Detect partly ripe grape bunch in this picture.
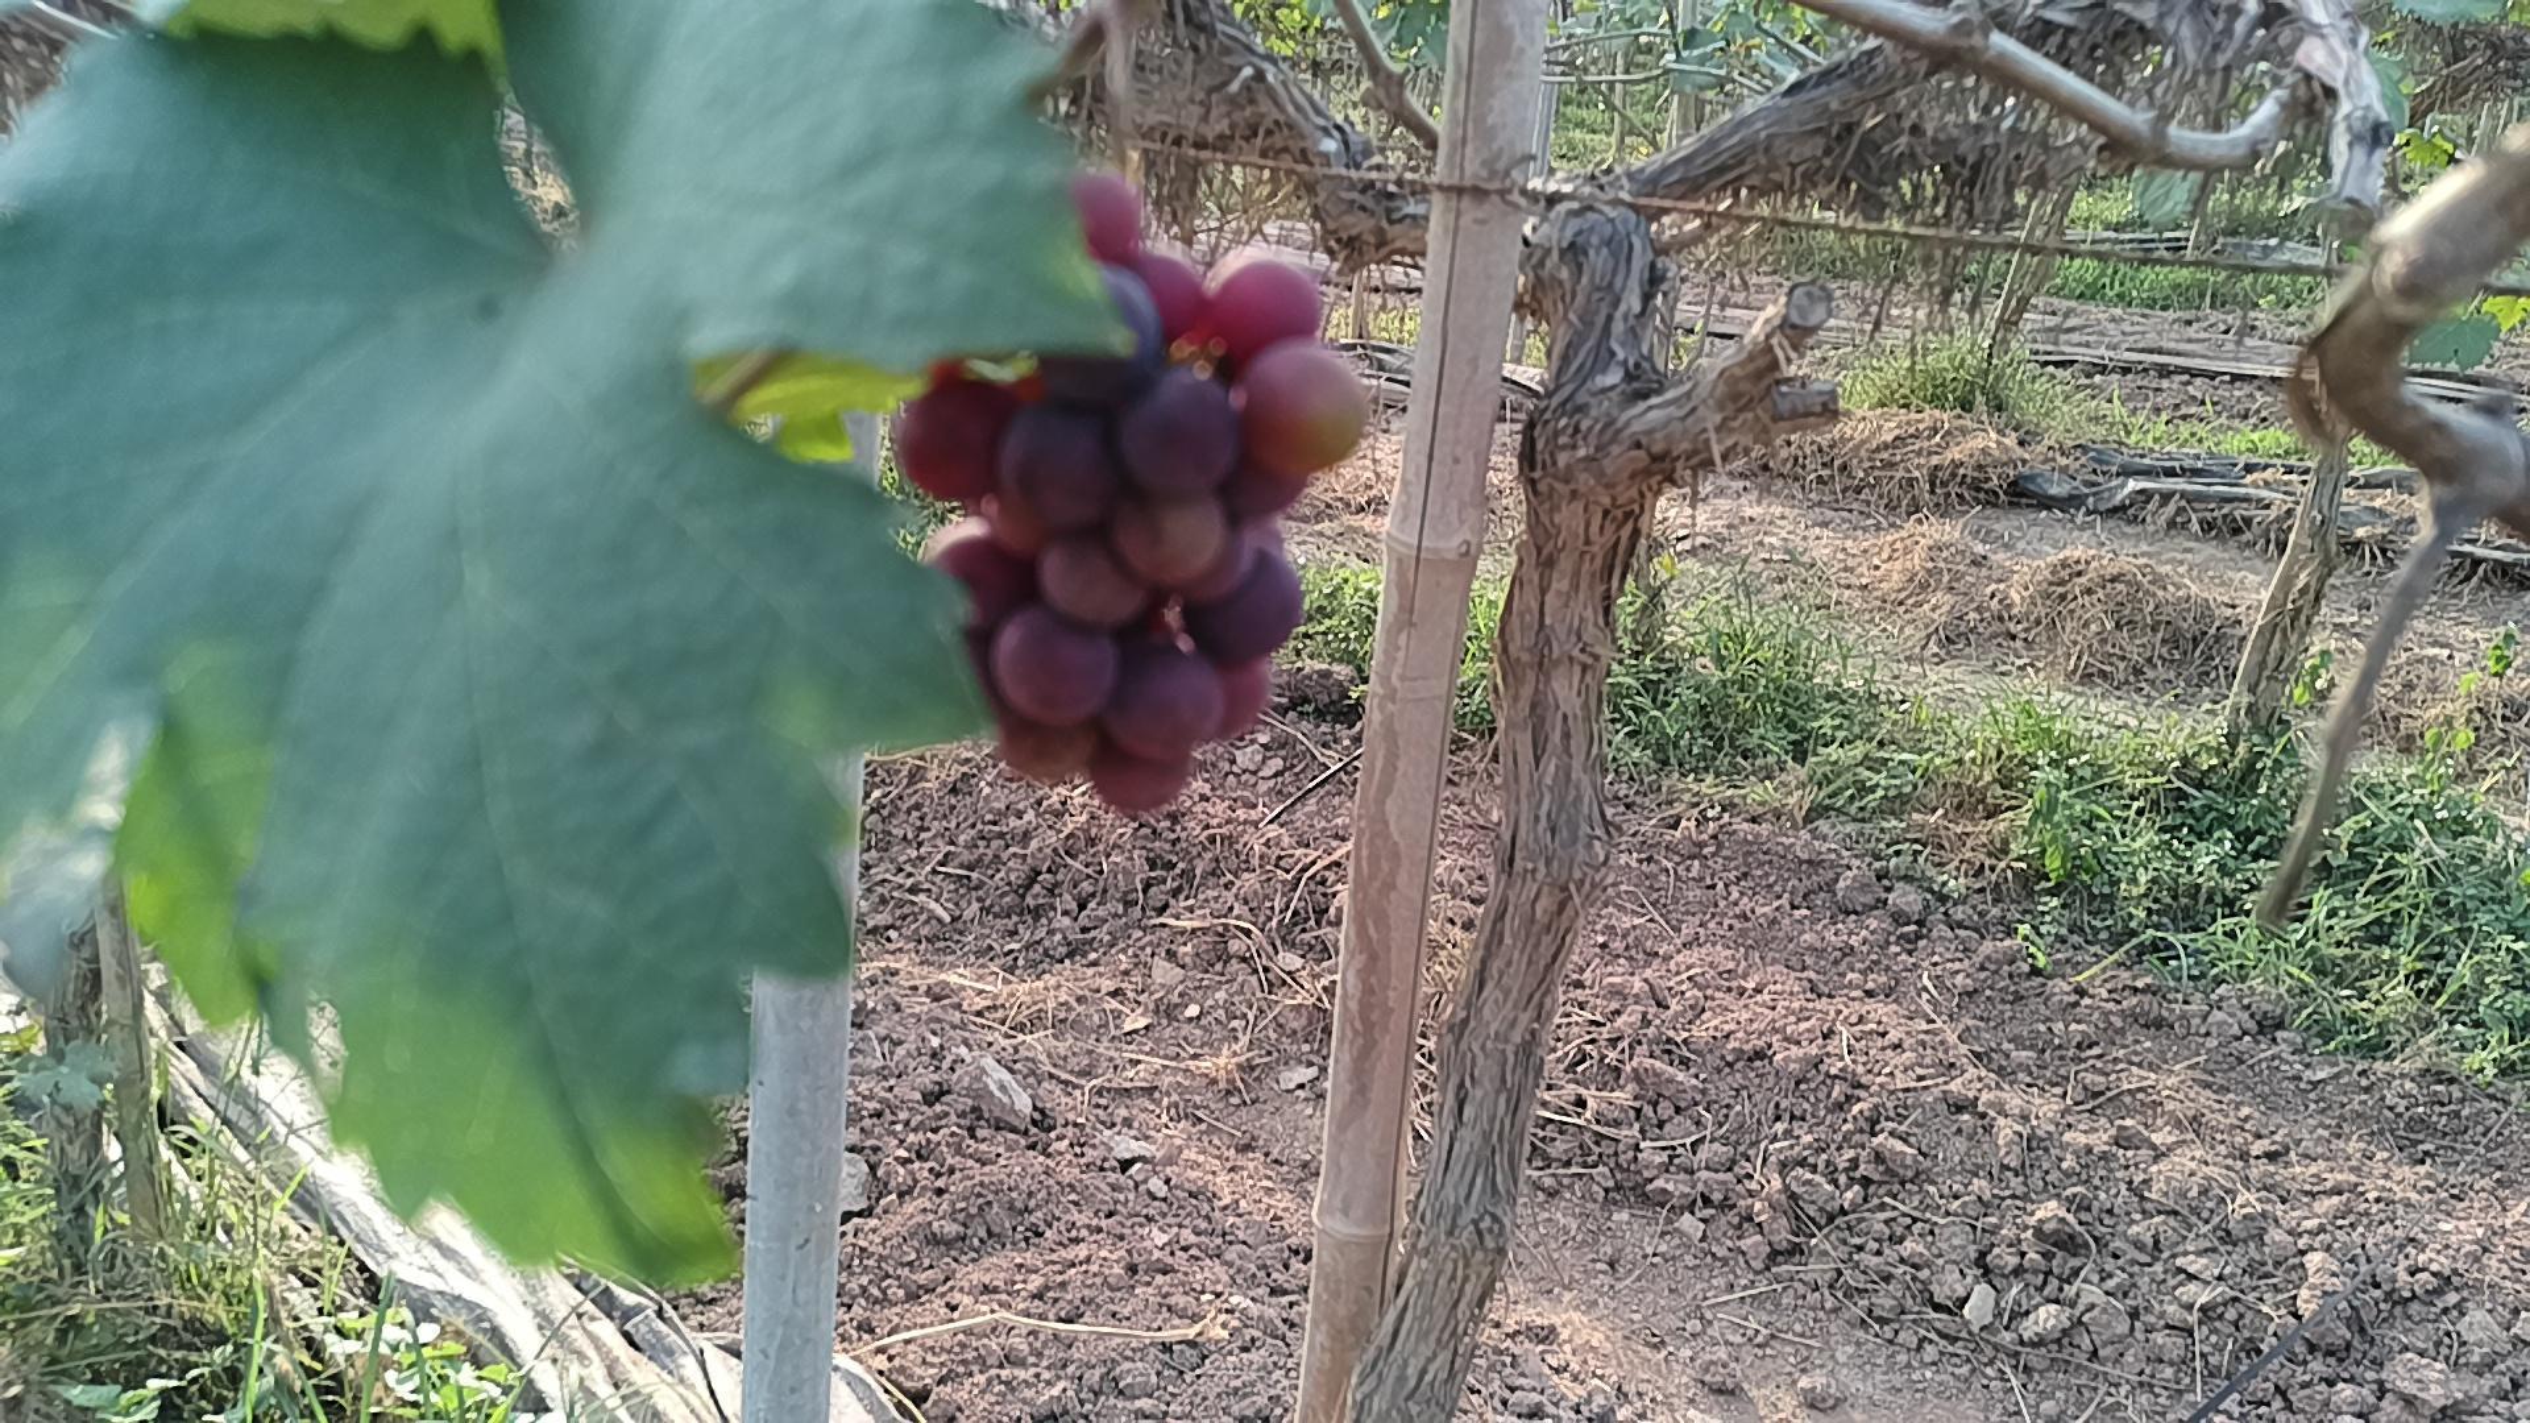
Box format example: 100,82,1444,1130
895,174,1366,814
